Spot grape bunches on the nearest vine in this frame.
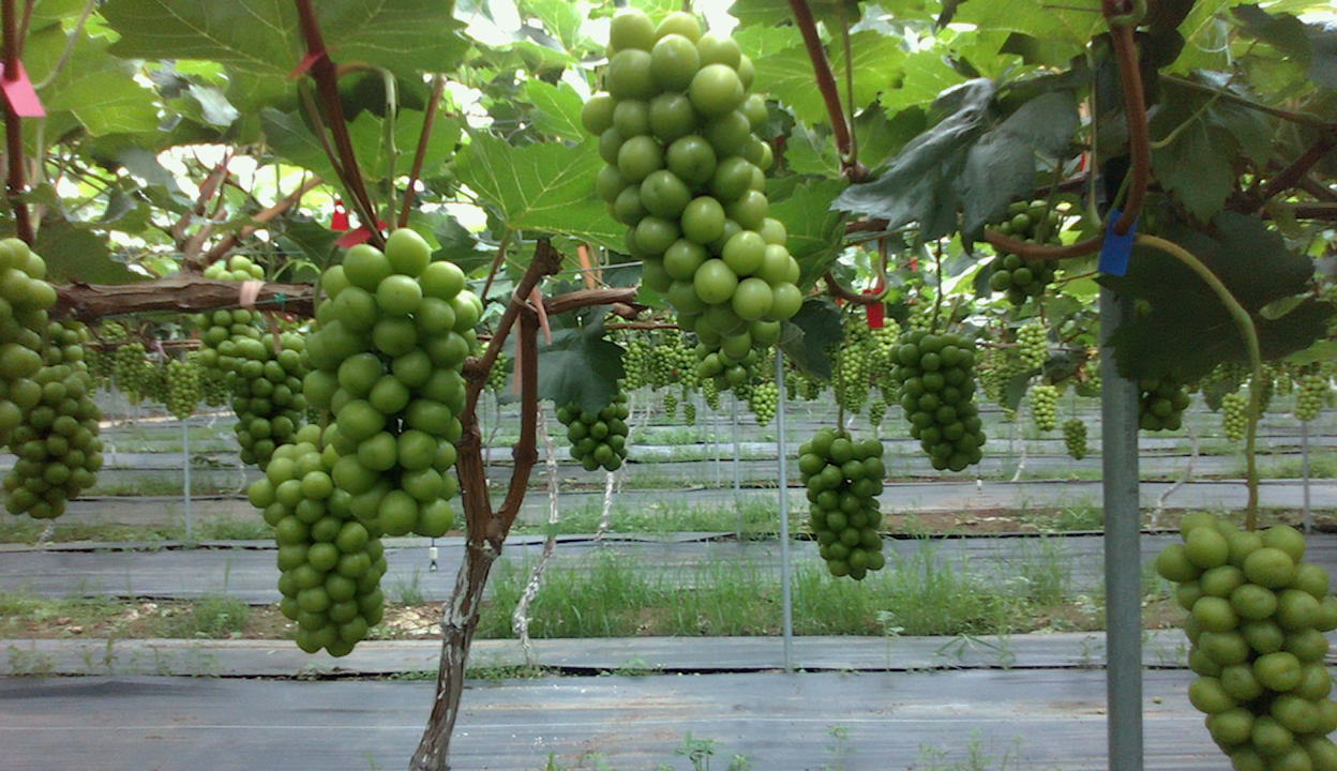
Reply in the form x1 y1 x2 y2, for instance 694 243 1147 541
583 10 799 335
250 424 387 659
0 243 56 444
303 228 485 540
1154 513 1336 770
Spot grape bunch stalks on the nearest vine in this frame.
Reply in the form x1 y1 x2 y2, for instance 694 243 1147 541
682 2 690 10
333 62 396 235
1131 233 1261 531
